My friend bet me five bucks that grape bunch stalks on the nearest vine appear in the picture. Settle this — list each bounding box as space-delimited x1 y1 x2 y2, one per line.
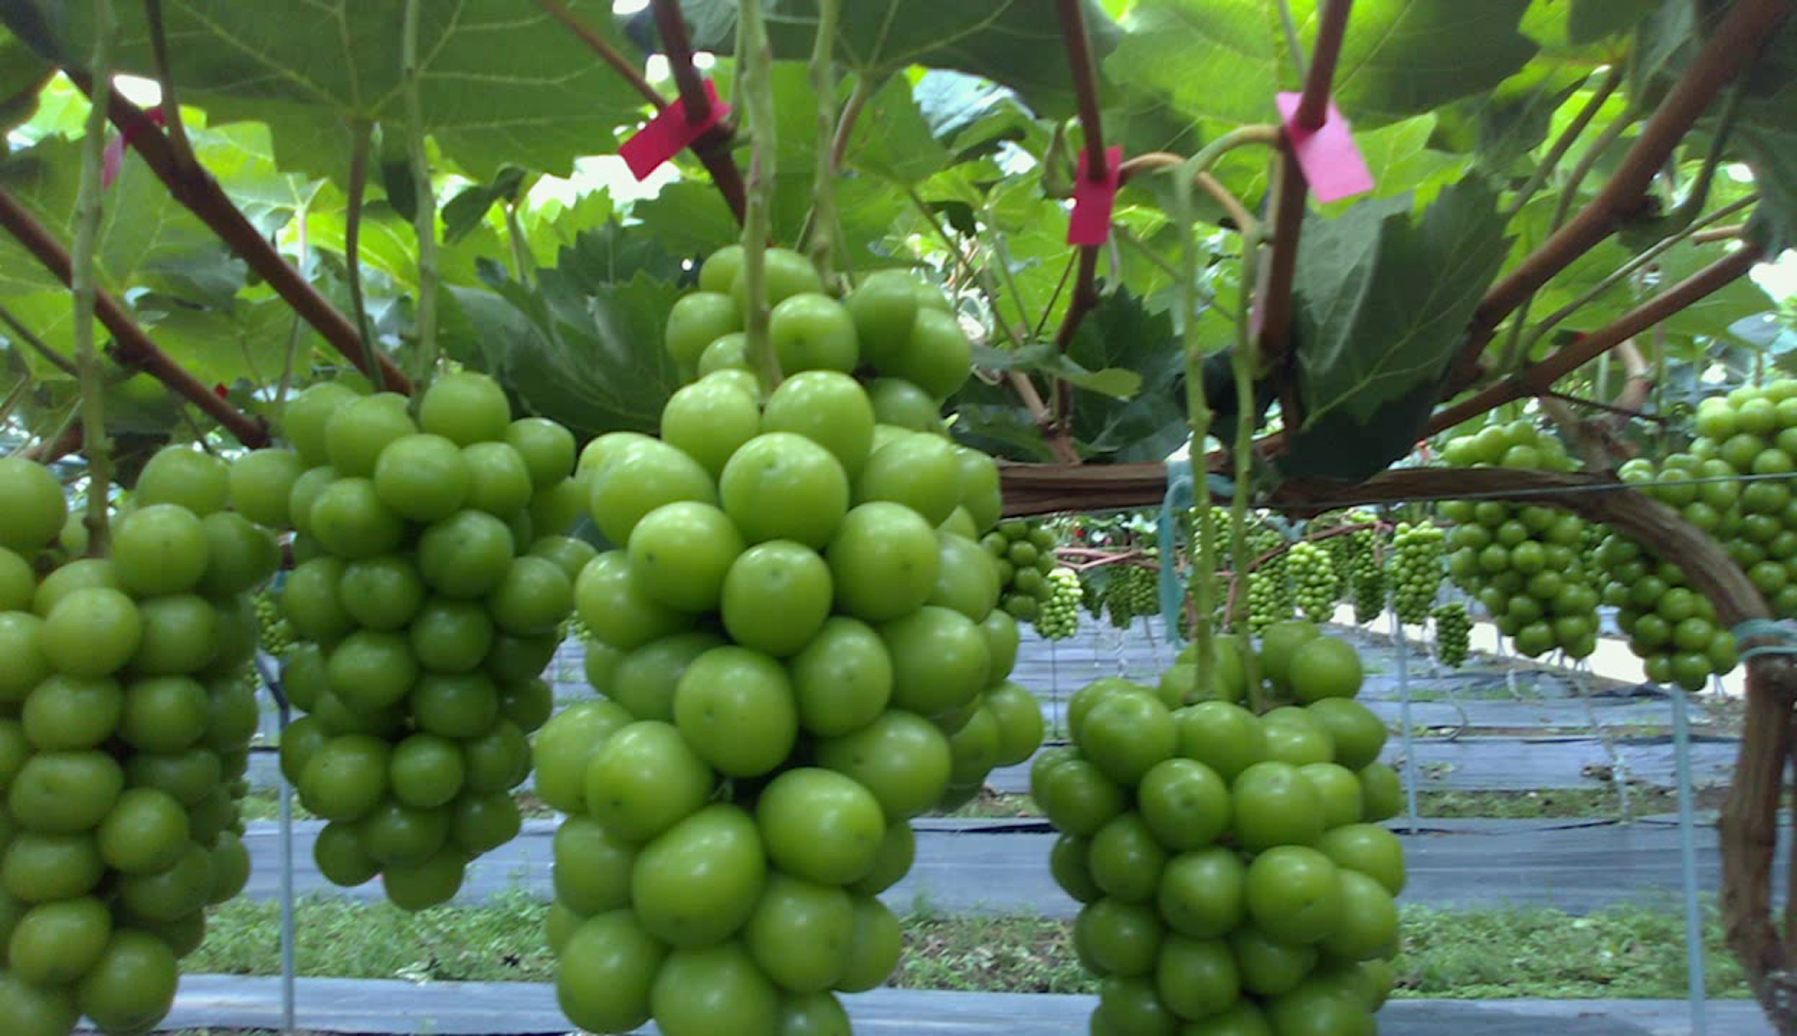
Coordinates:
73 0 122 551
809 0 842 292
1204 174 1267 709
397 0 438 417
734 0 782 403
1155 125 1264 702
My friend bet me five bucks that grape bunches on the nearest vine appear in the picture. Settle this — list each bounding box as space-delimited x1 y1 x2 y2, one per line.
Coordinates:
661 247 970 429
533 368 1045 1033
1034 662 1414 1033
230 374 593 912
1266 617 1401 826
0 442 284 1033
